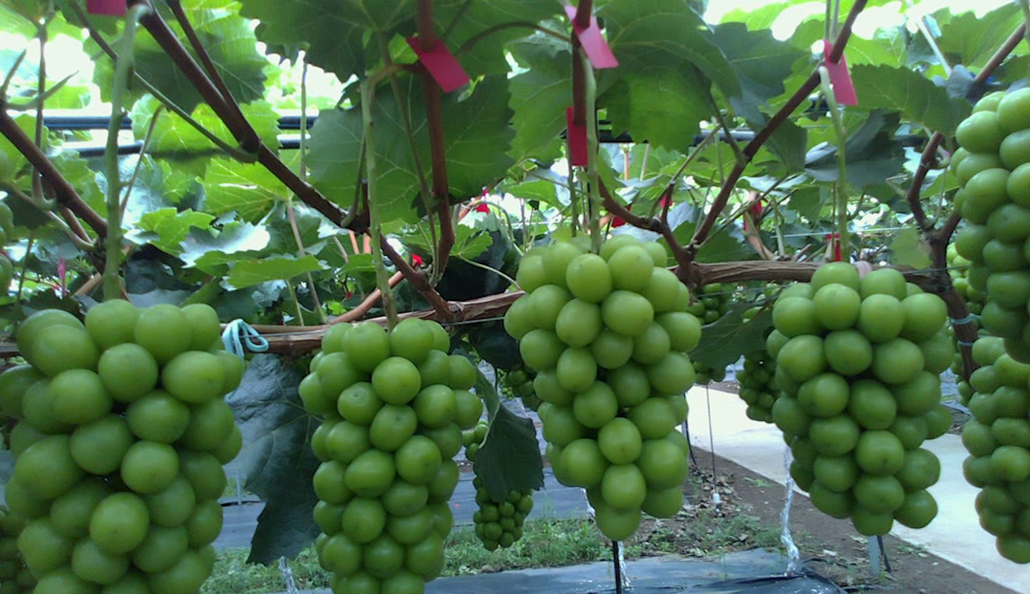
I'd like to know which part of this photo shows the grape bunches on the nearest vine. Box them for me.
[949,87,1029,365]
[0,298,243,593]
[961,336,1028,565]
[297,316,483,593]
[766,262,954,537]
[504,233,703,541]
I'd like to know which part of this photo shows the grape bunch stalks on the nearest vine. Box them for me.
[579,47,607,256]
[361,62,424,332]
[102,4,148,301]
[820,67,852,264]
